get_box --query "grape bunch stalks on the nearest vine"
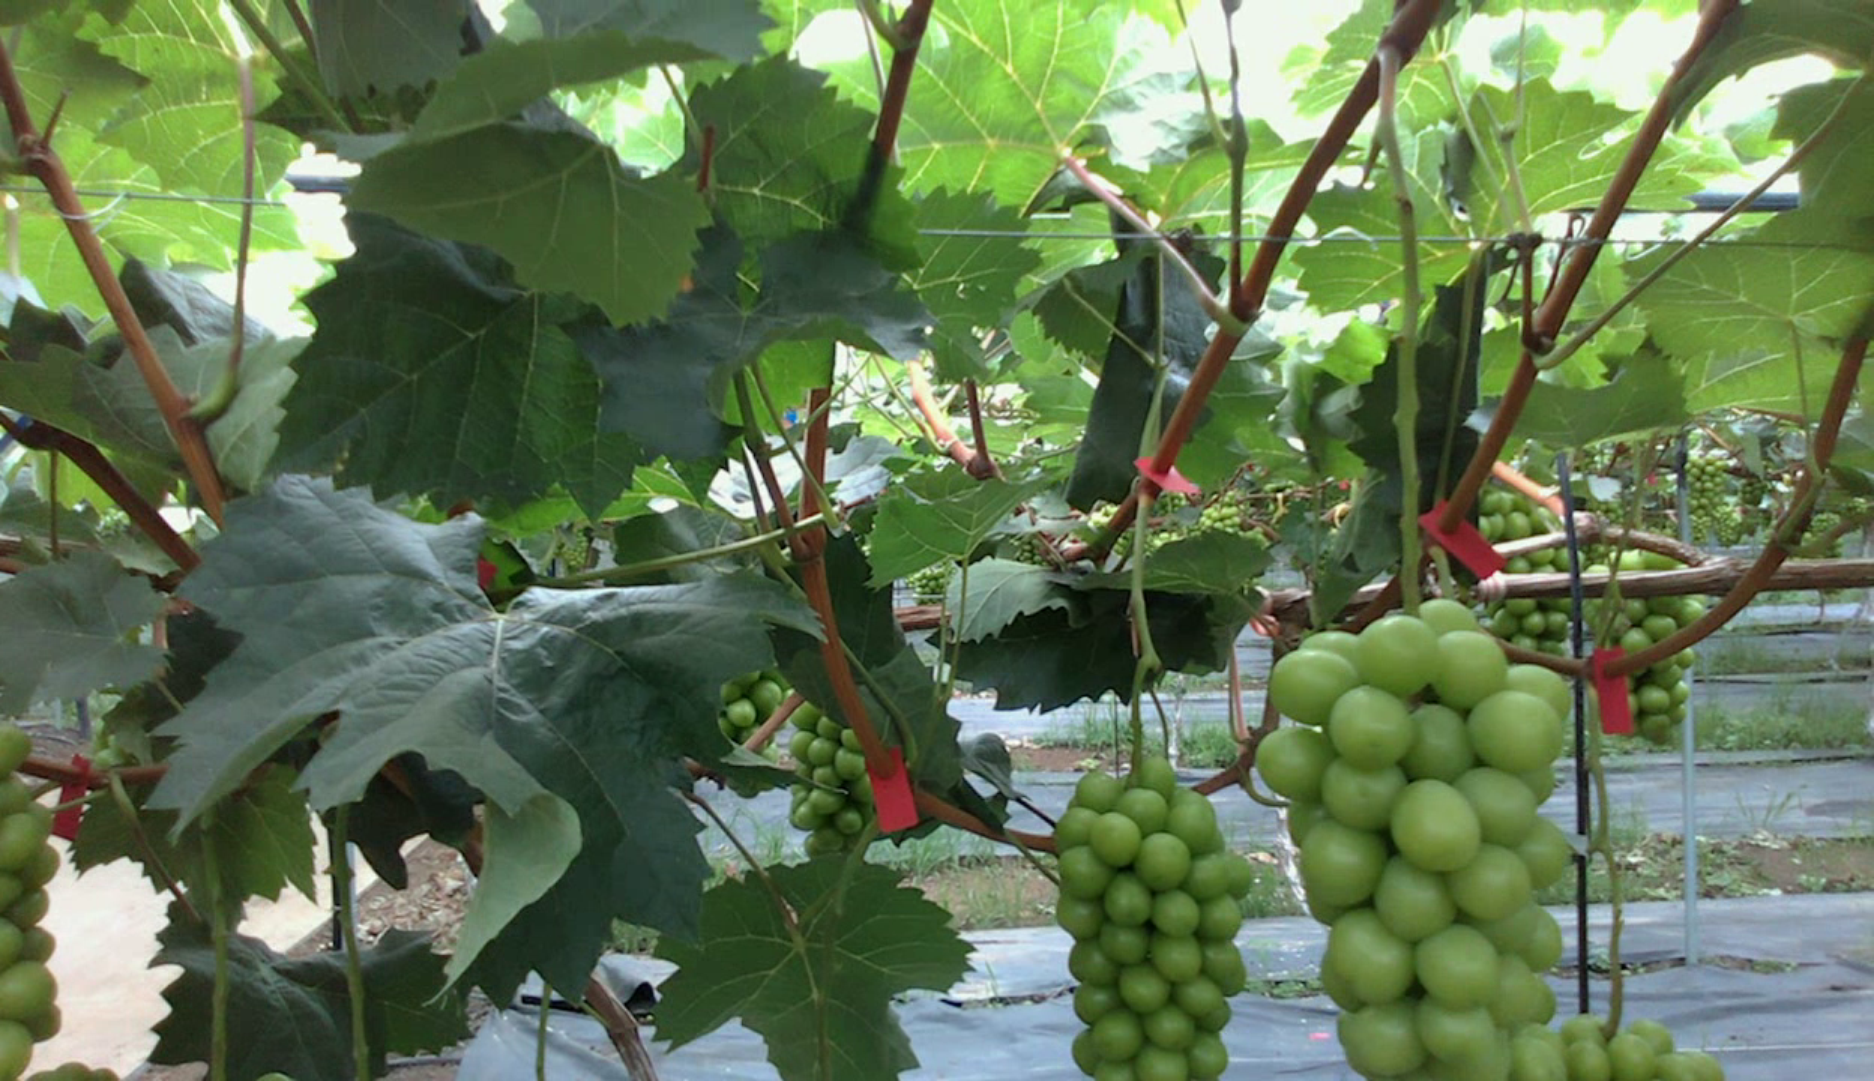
[1378,53,1422,617]
[1583,683,1623,1046]
[1125,497,1161,791]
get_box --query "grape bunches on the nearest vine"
[1054,752,1254,1079]
[1255,598,1571,1079]
[0,719,62,1079]
[1560,1012,1722,1079]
